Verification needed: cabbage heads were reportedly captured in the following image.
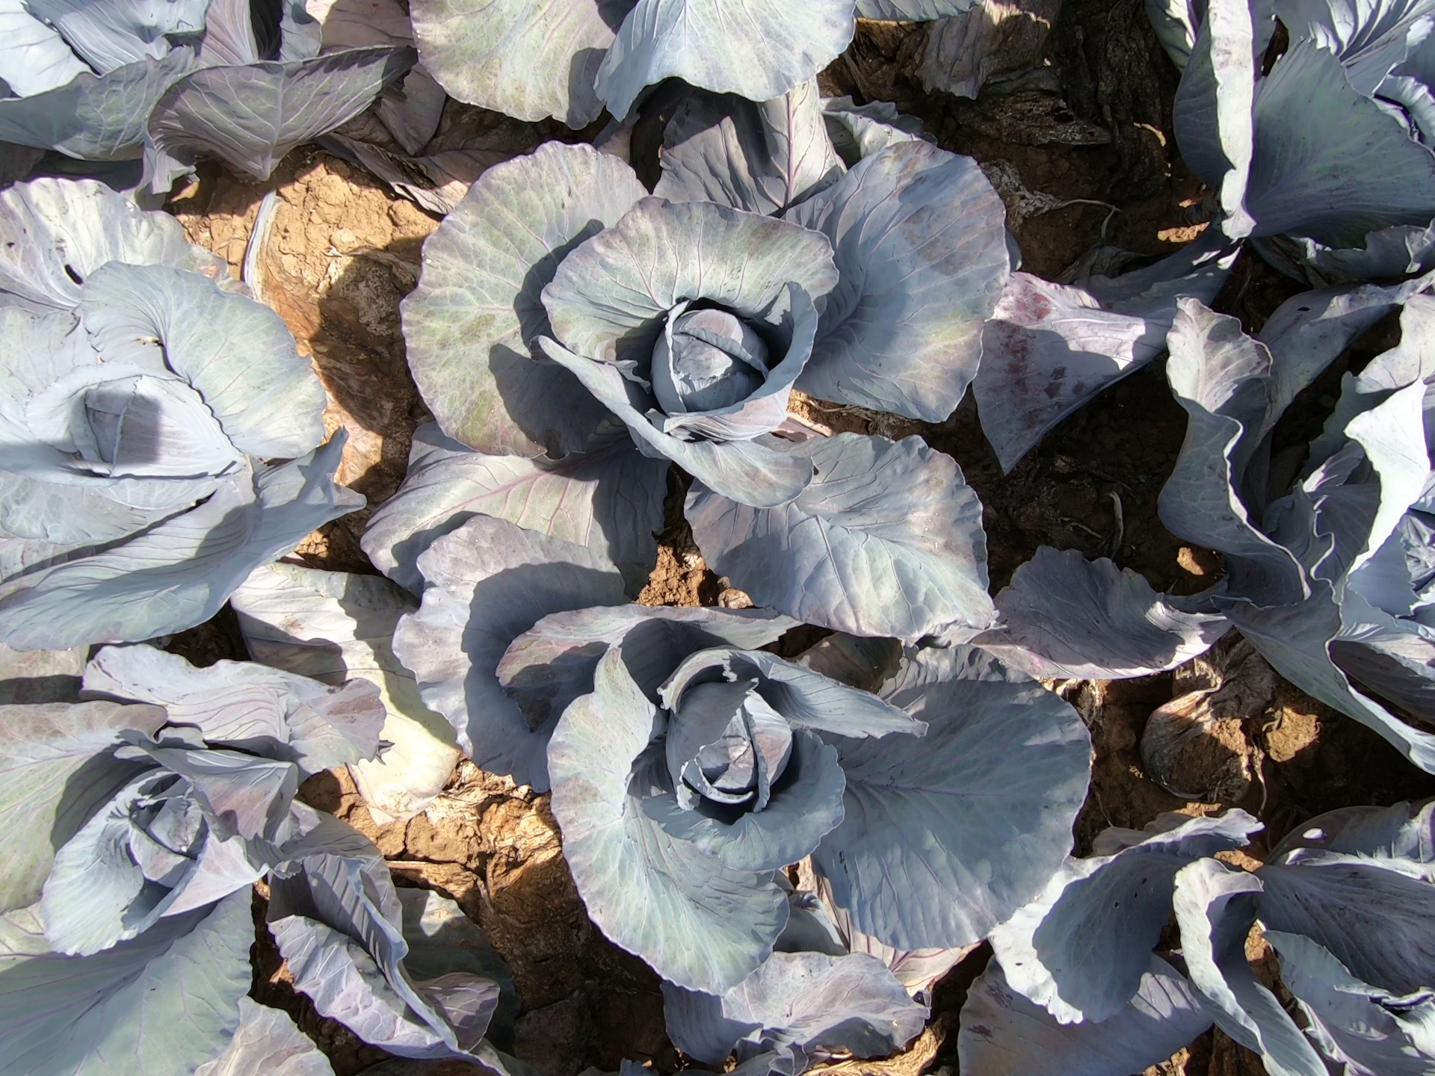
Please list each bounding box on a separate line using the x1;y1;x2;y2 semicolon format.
137;764;258;891
672;684;794;800
55;1;213;97
1273;484;1433;632
656;310;772;424
69;376;226;494
1291;78;1423;194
